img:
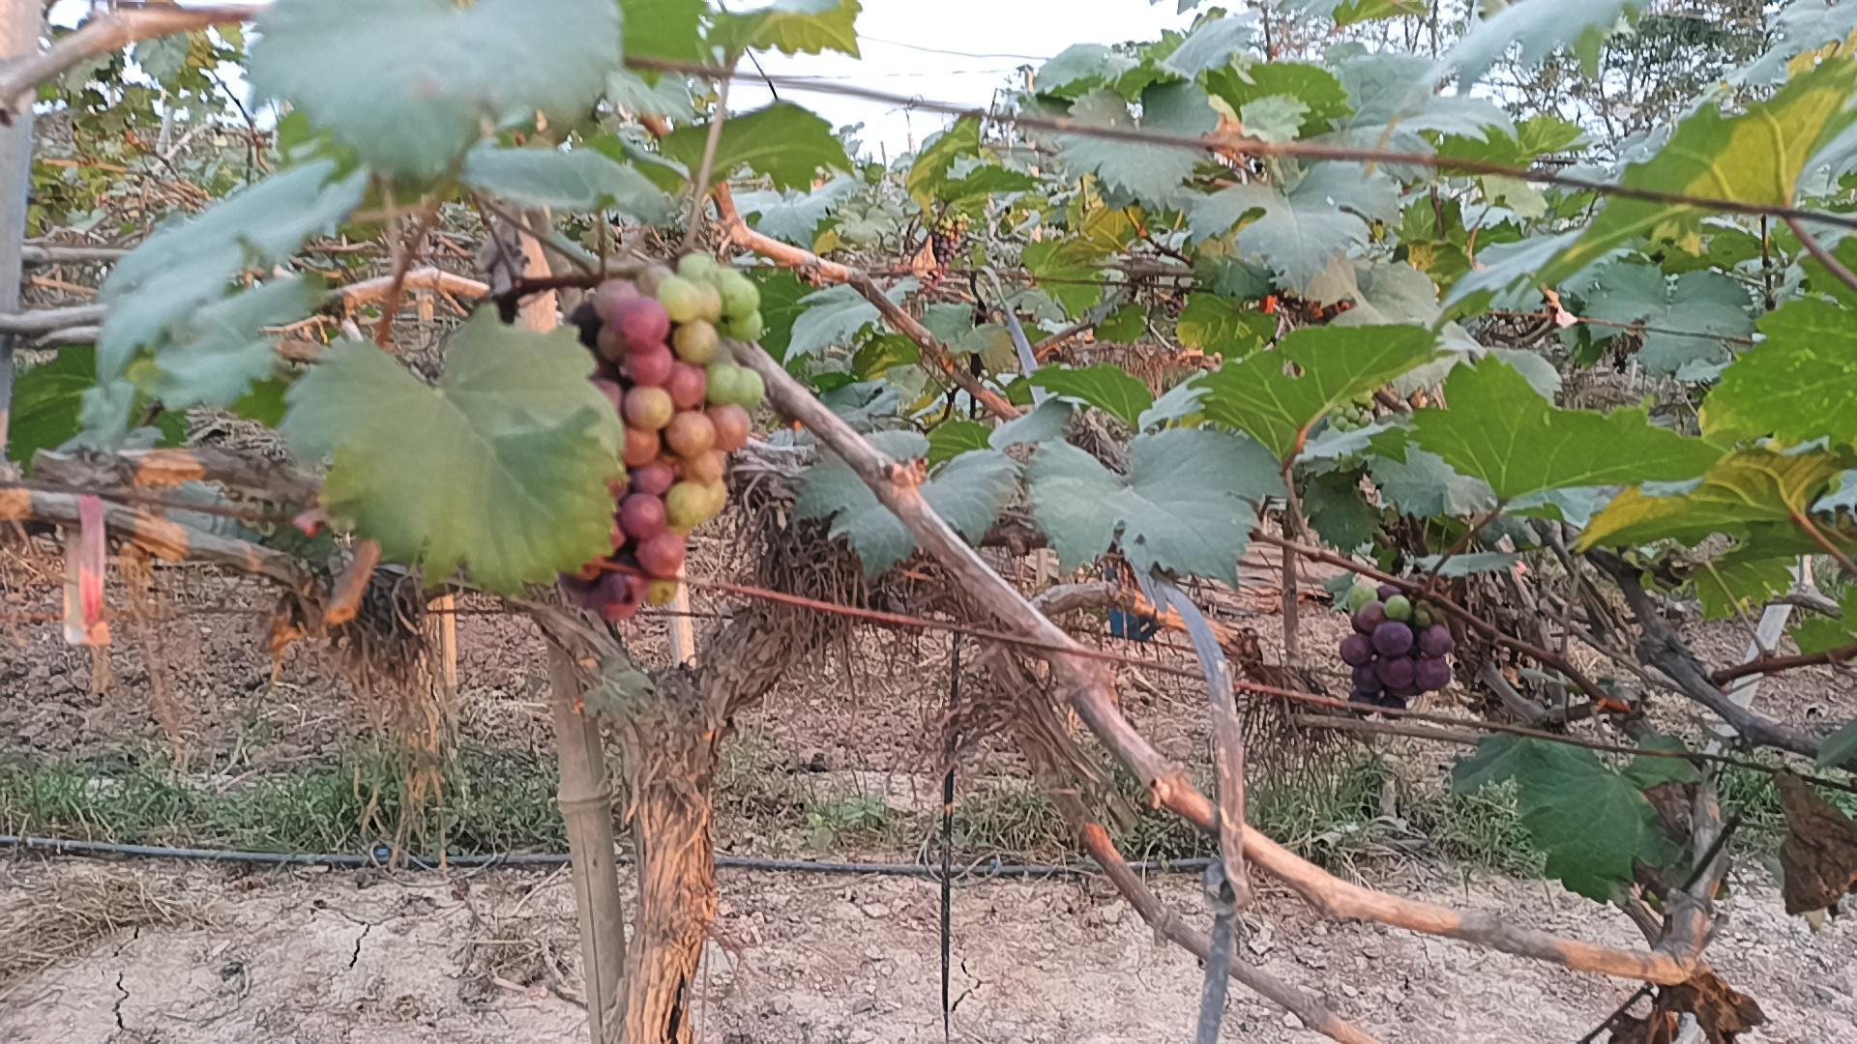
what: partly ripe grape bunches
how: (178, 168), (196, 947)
(558, 254), (758, 621)
(1340, 584), (1454, 718)
(928, 214), (968, 275)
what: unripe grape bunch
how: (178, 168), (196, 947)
(1327, 389), (1376, 431)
